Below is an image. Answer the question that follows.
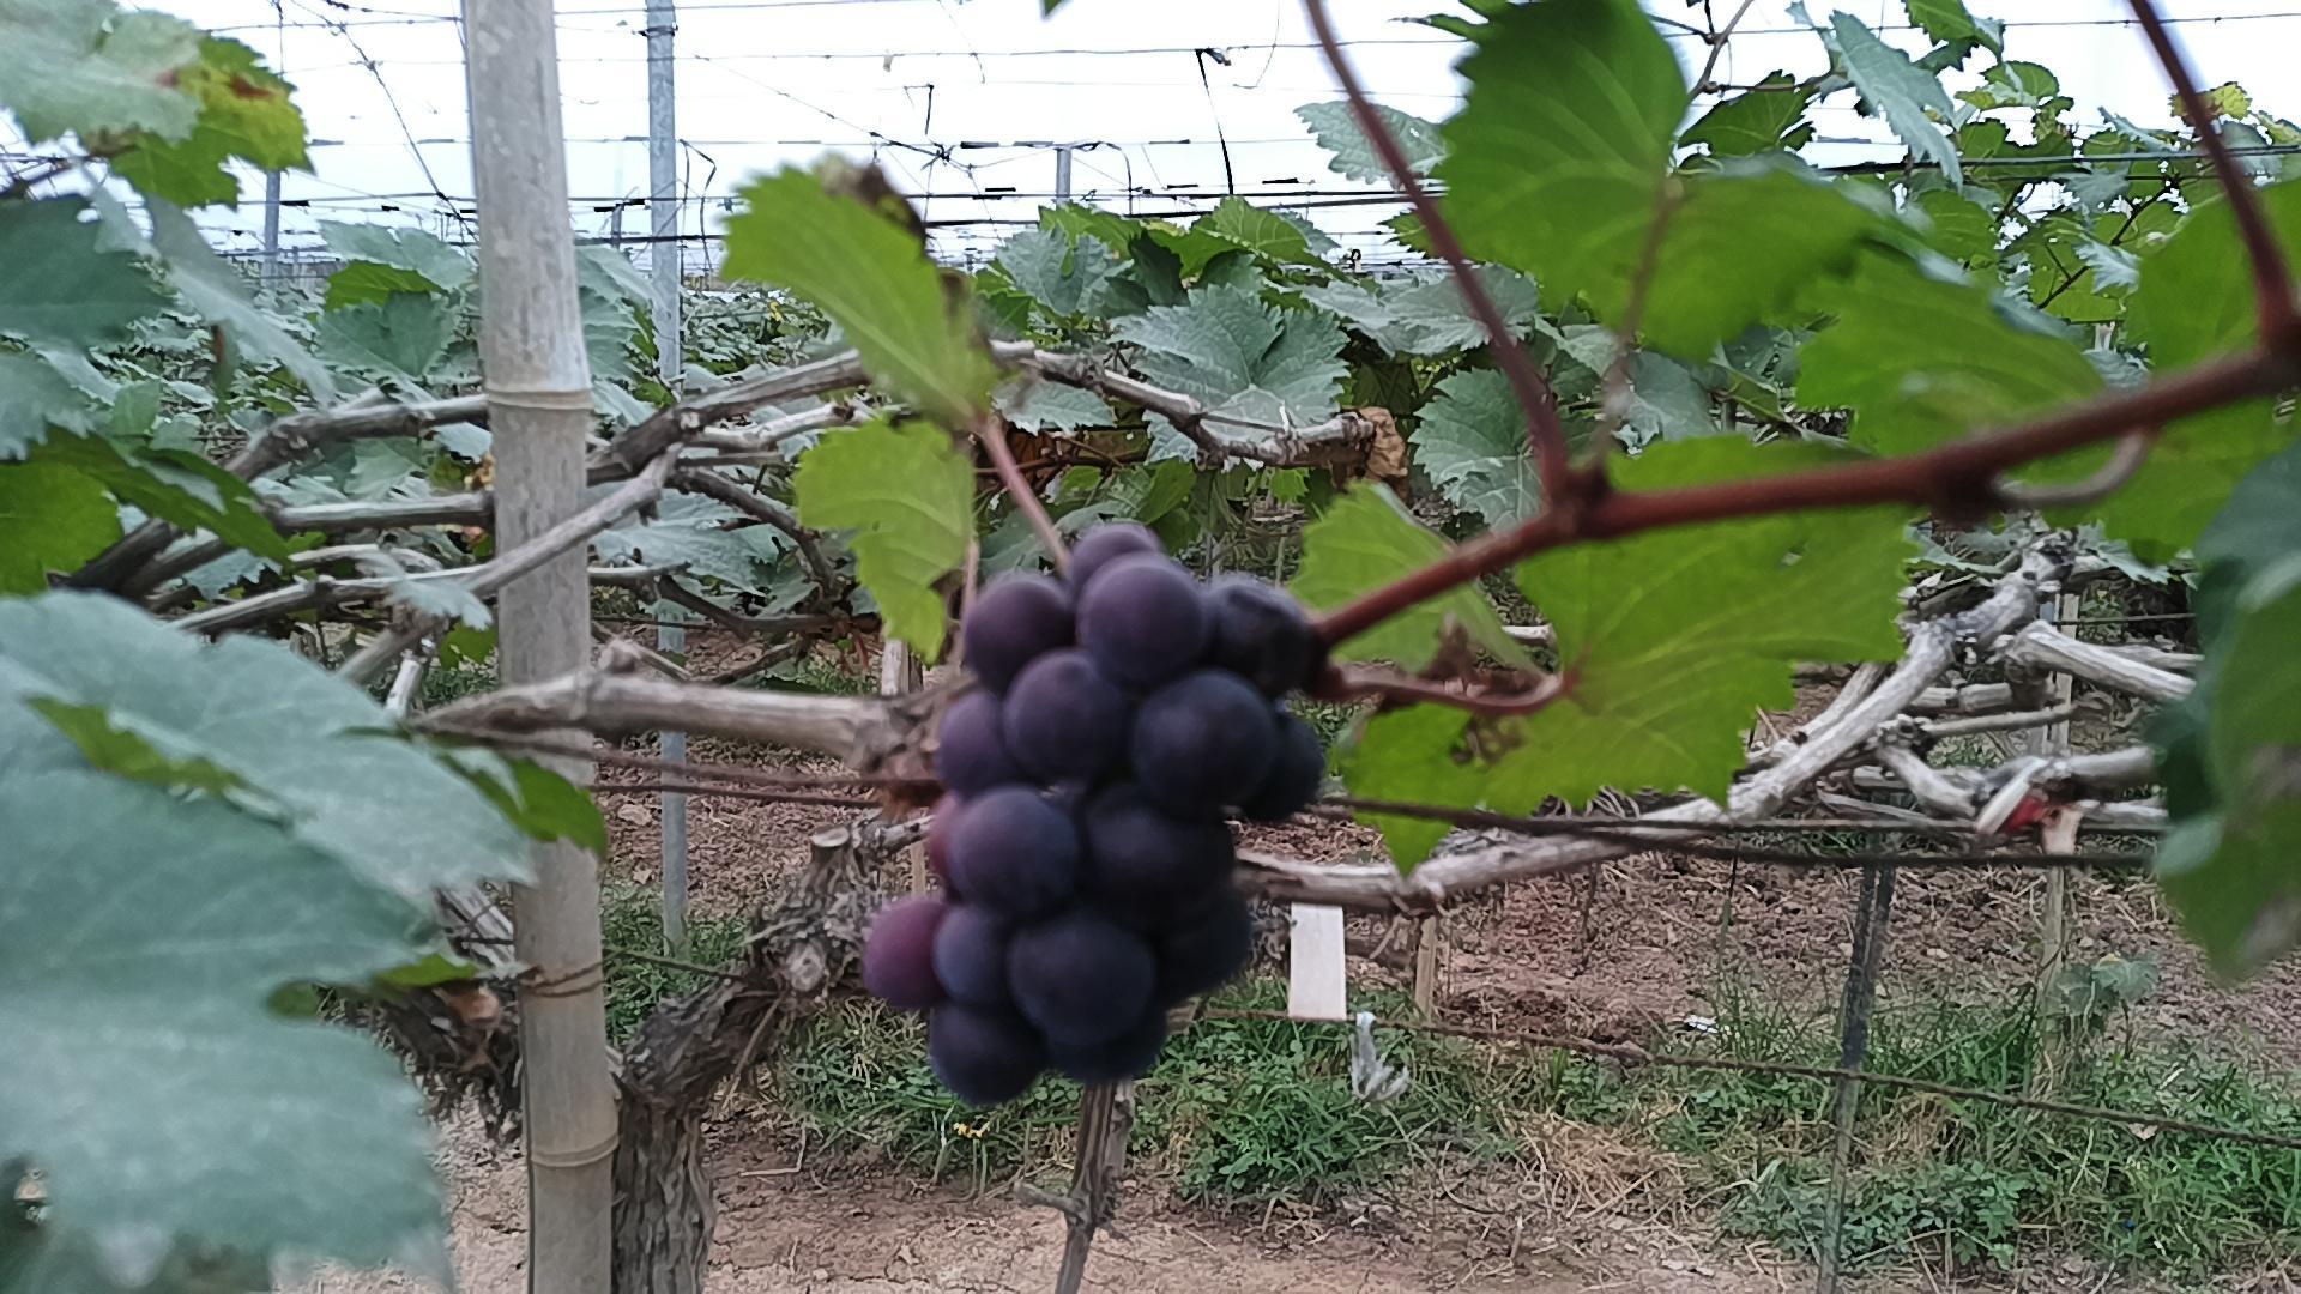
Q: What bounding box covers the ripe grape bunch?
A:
[864,524,1324,1105]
